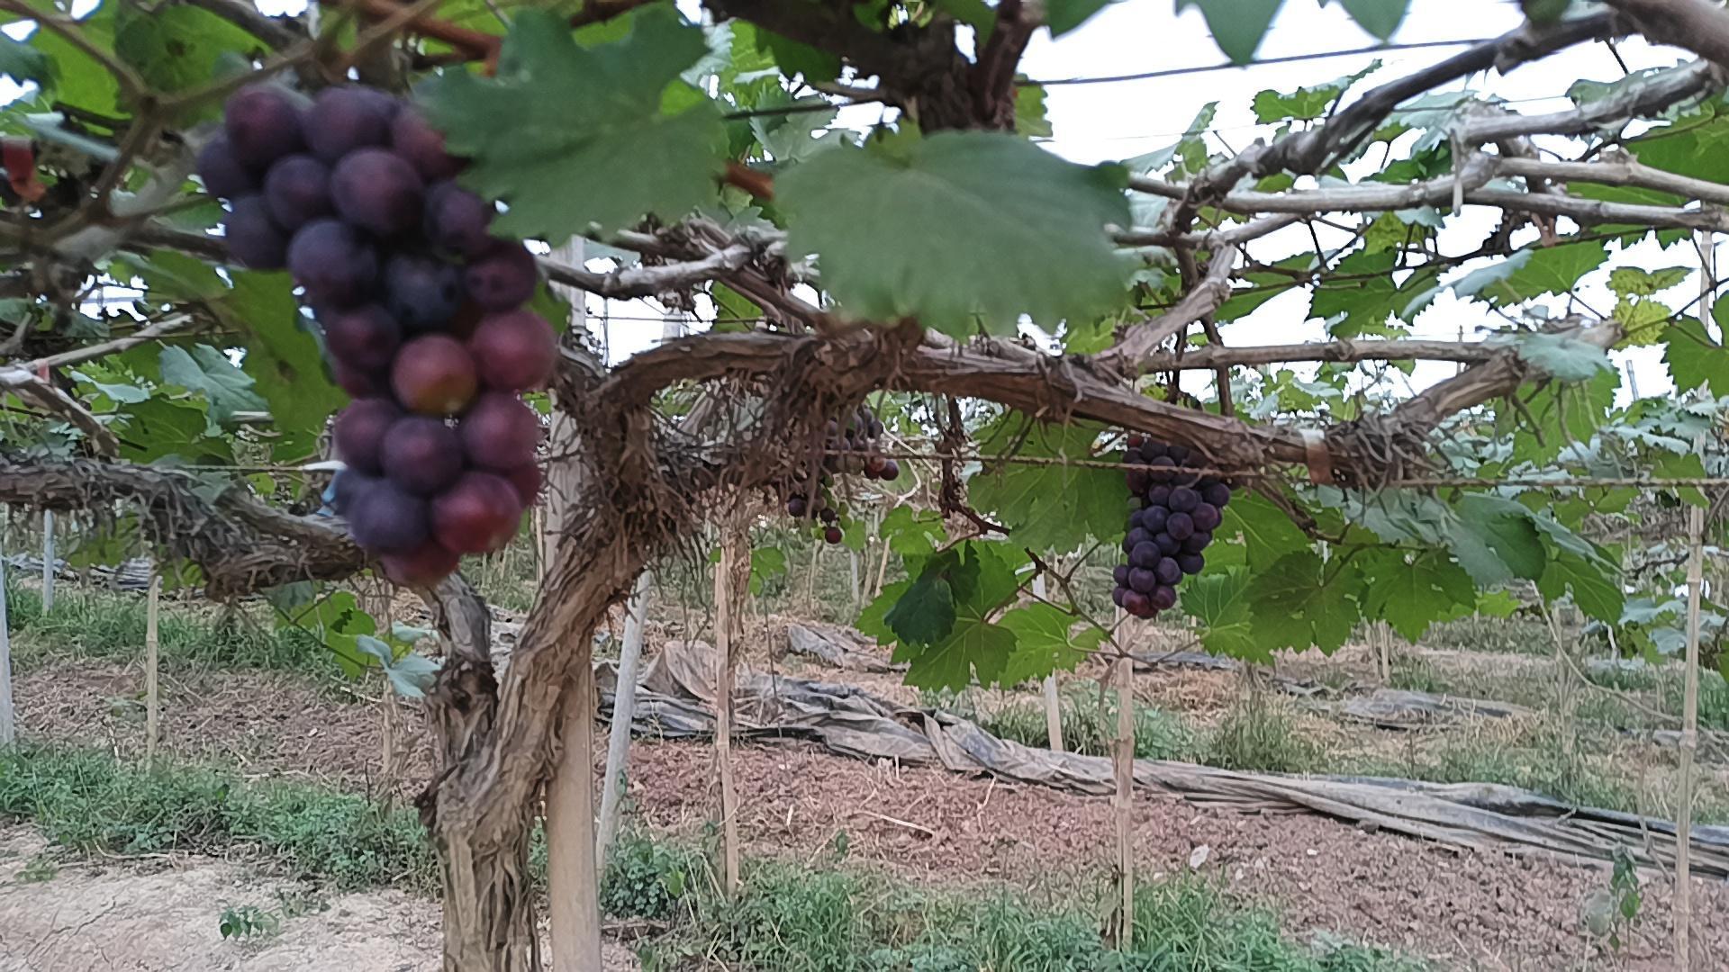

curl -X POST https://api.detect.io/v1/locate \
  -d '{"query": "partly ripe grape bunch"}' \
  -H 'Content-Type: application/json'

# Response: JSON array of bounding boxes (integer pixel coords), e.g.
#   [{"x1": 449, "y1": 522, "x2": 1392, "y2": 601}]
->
[{"x1": 771, "y1": 407, "x2": 899, "y2": 544}]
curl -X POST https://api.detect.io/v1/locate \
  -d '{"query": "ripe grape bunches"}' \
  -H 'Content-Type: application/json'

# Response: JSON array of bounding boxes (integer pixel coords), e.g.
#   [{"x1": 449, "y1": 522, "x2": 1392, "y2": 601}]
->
[
  {"x1": 198, "y1": 83, "x2": 557, "y2": 586},
  {"x1": 1112, "y1": 436, "x2": 1231, "y2": 618}
]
